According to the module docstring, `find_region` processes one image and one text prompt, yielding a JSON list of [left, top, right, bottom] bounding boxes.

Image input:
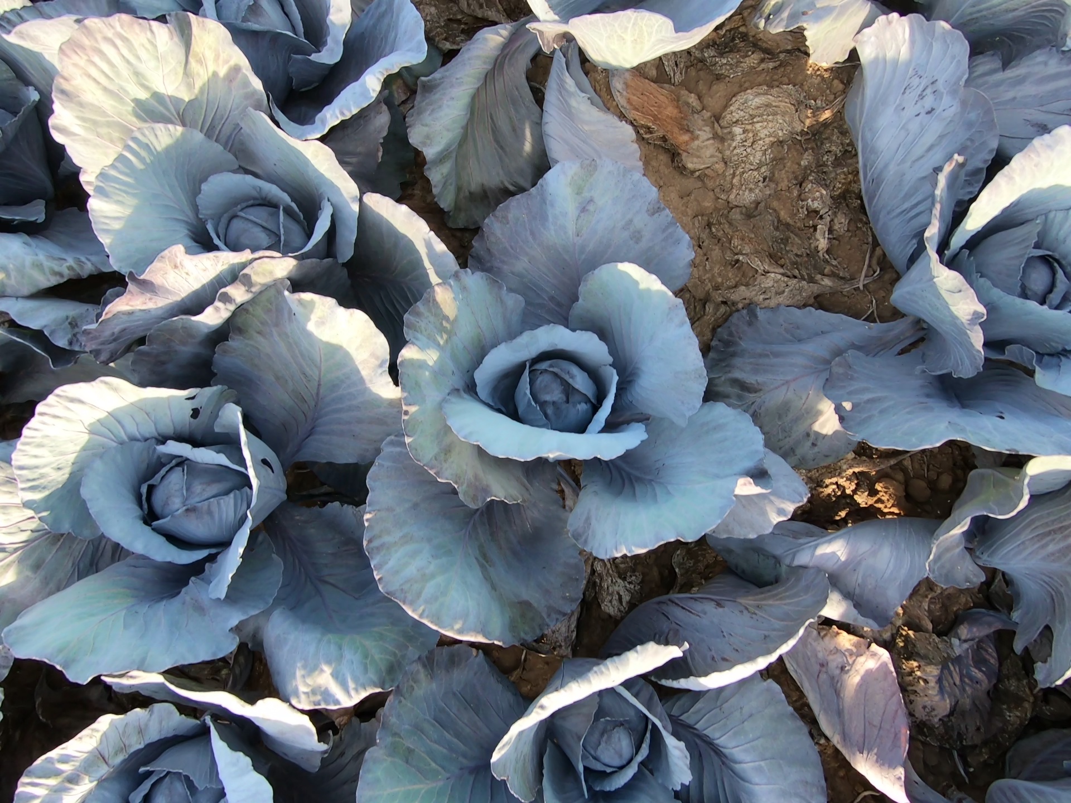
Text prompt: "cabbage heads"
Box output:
[[149, 448, 271, 544], [553, 671, 649, 772], [224, 203, 313, 272], [206, 0, 297, 72], [973, 248, 1064, 331], [513, 358, 600, 436], [140, 746, 241, 802]]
